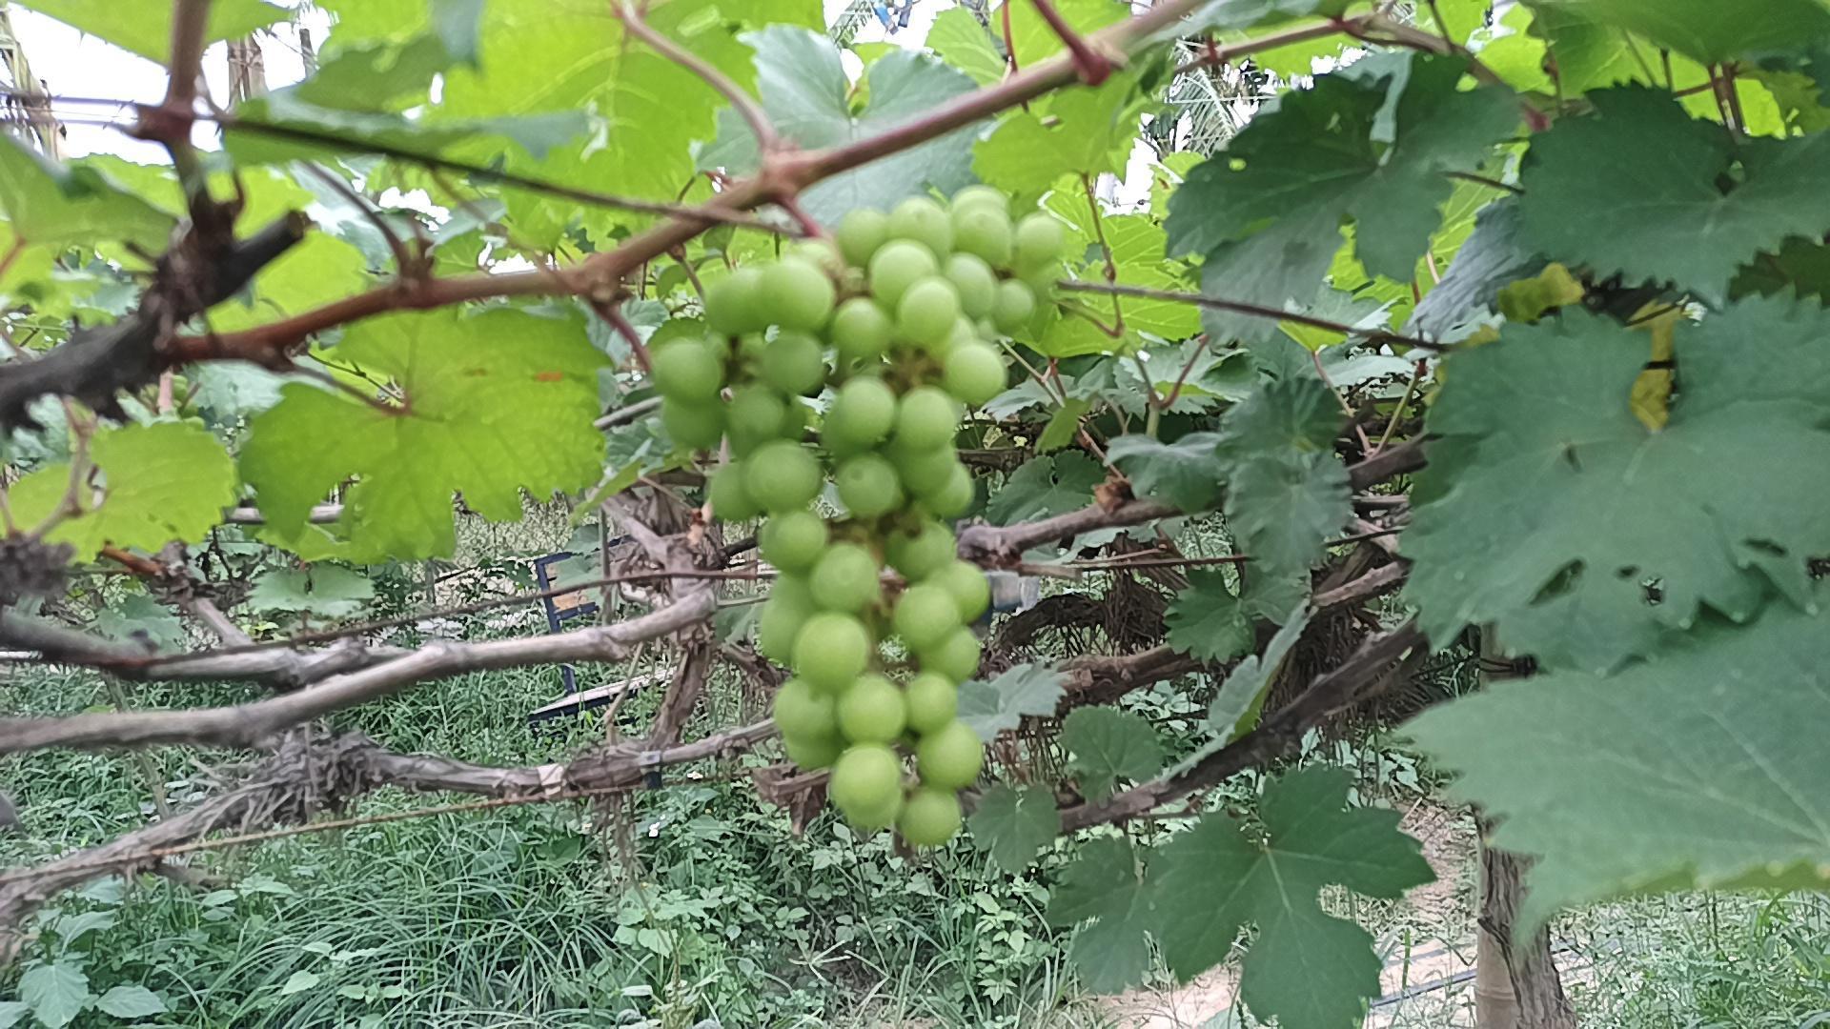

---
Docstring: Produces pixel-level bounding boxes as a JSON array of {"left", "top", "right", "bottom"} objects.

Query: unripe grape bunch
[{"left": 650, "top": 187, "right": 1065, "bottom": 844}]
